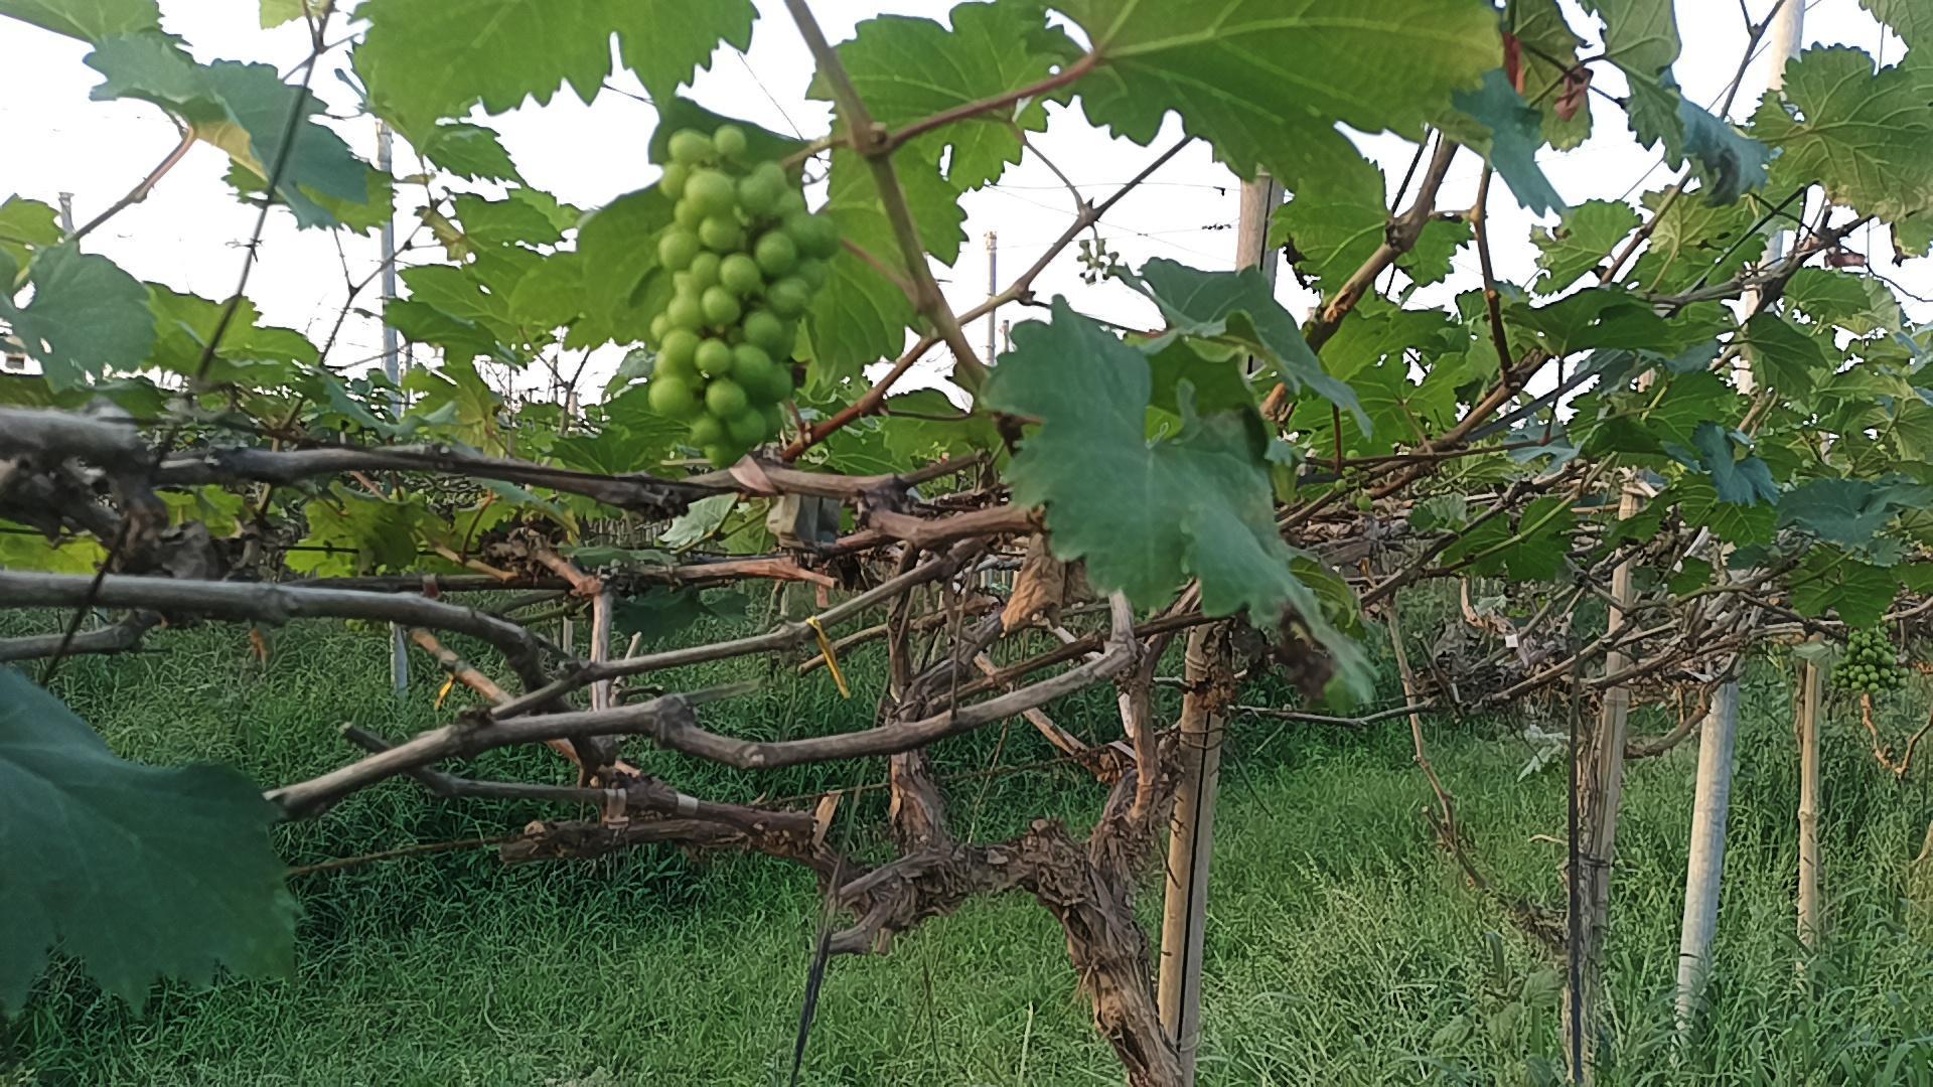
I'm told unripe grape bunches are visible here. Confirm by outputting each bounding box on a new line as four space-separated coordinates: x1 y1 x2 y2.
1335 448 1373 512
649 126 839 465
1831 621 1909 697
